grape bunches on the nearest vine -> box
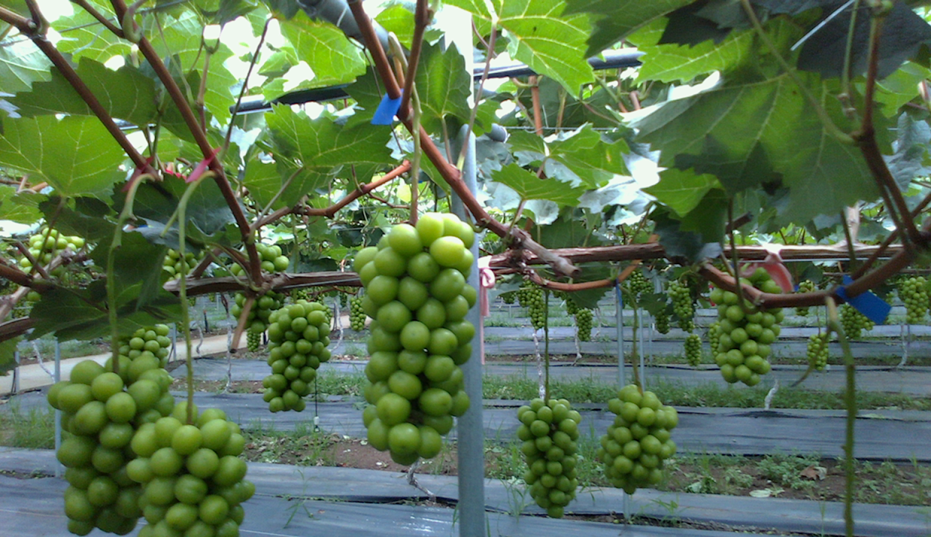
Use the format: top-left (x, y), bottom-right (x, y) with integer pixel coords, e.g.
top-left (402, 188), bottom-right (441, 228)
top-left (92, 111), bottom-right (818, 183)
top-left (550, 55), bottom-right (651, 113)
top-left (351, 213), bottom-right (476, 466)
top-left (49, 356), bottom-right (178, 536)
top-left (127, 403), bottom-right (255, 536)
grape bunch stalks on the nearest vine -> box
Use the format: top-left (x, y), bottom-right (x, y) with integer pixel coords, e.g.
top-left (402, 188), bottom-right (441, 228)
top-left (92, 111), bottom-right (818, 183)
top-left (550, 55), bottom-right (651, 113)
top-left (107, 175), bottom-right (145, 371)
top-left (408, 87), bottom-right (421, 223)
top-left (159, 172), bottom-right (207, 424)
